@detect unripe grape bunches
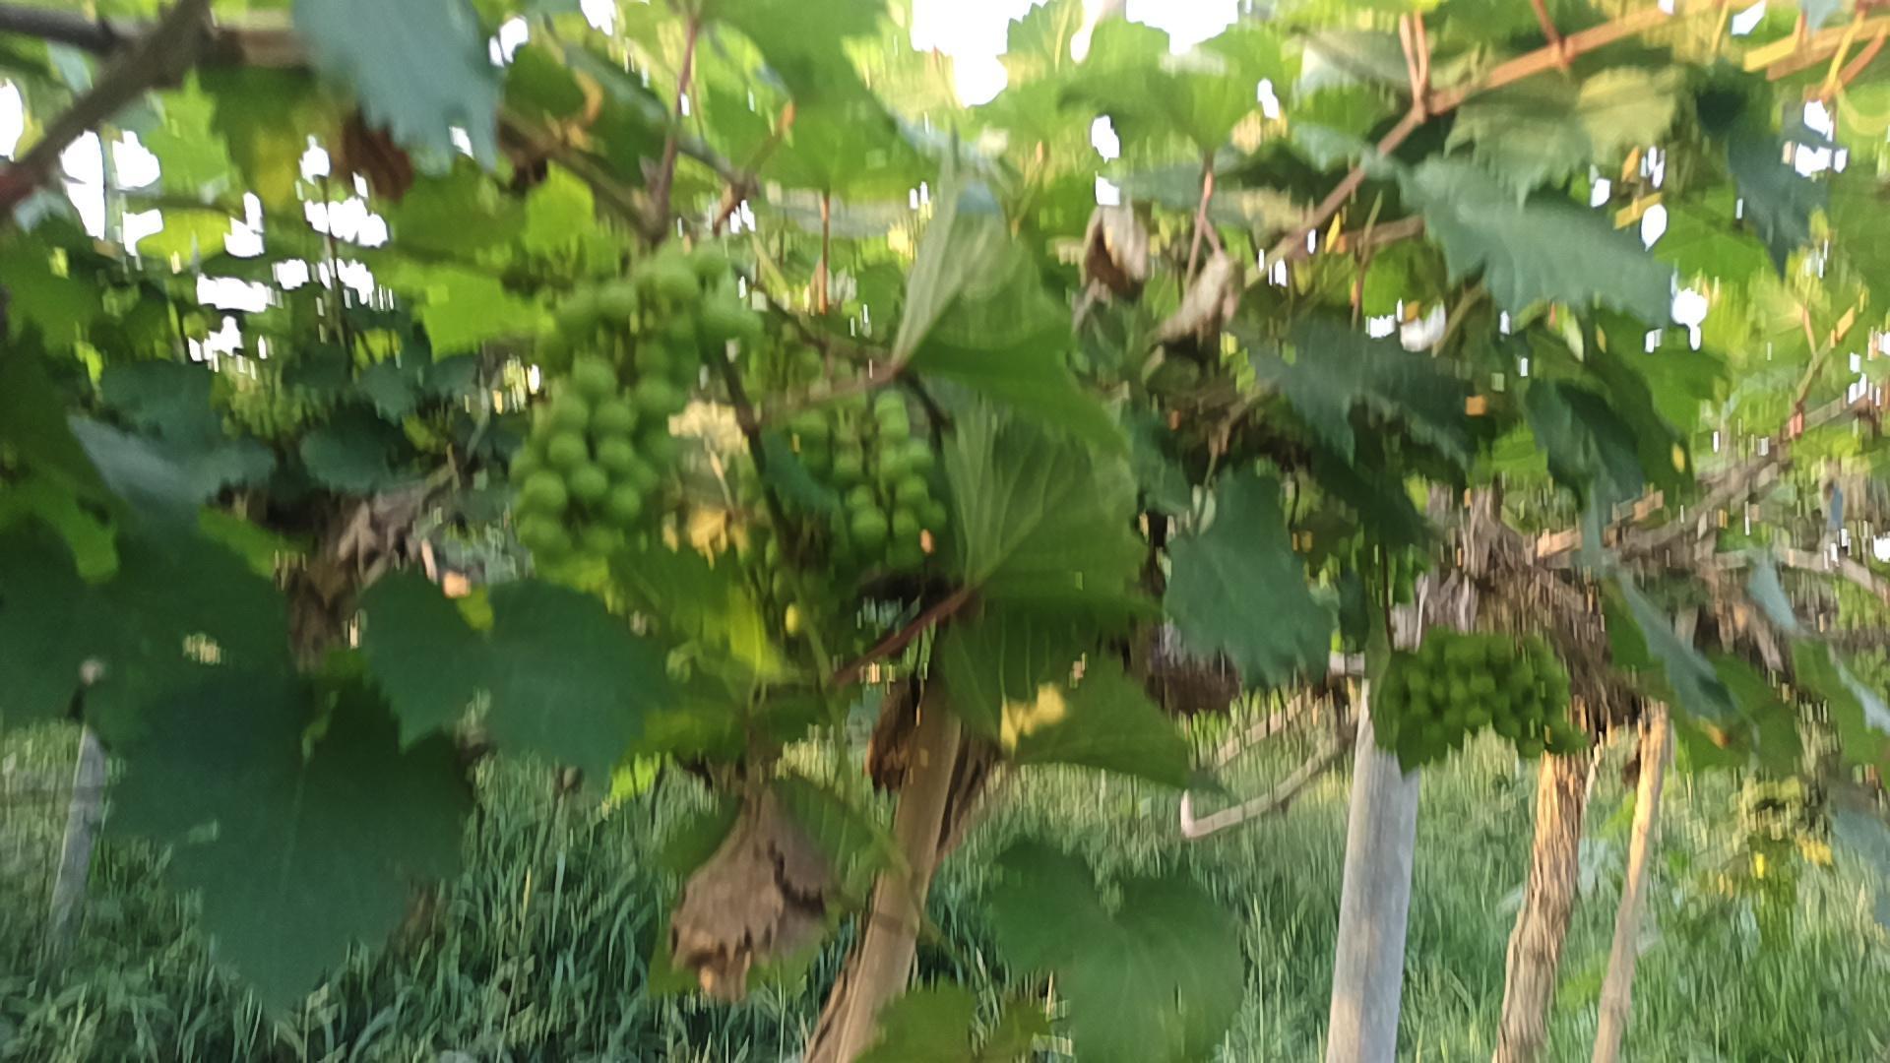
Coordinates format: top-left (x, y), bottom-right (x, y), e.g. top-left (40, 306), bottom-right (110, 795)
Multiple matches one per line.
top-left (1403, 628), bottom-right (1587, 759)
top-left (788, 391), bottom-right (945, 568)
top-left (512, 237), bottom-right (762, 572)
